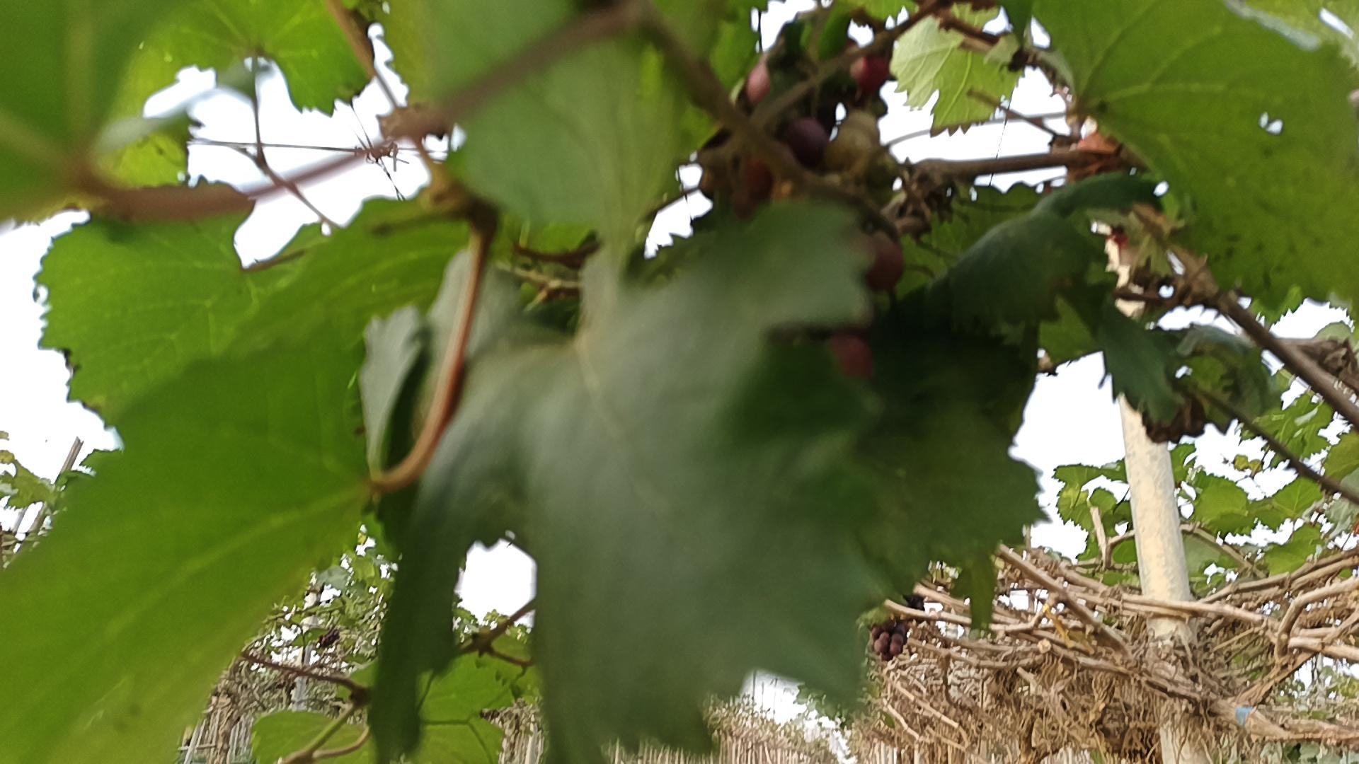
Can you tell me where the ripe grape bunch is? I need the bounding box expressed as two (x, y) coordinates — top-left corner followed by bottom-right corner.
(869, 594), (924, 661)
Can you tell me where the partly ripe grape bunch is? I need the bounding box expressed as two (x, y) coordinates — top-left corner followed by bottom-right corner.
(699, 22), (903, 378)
